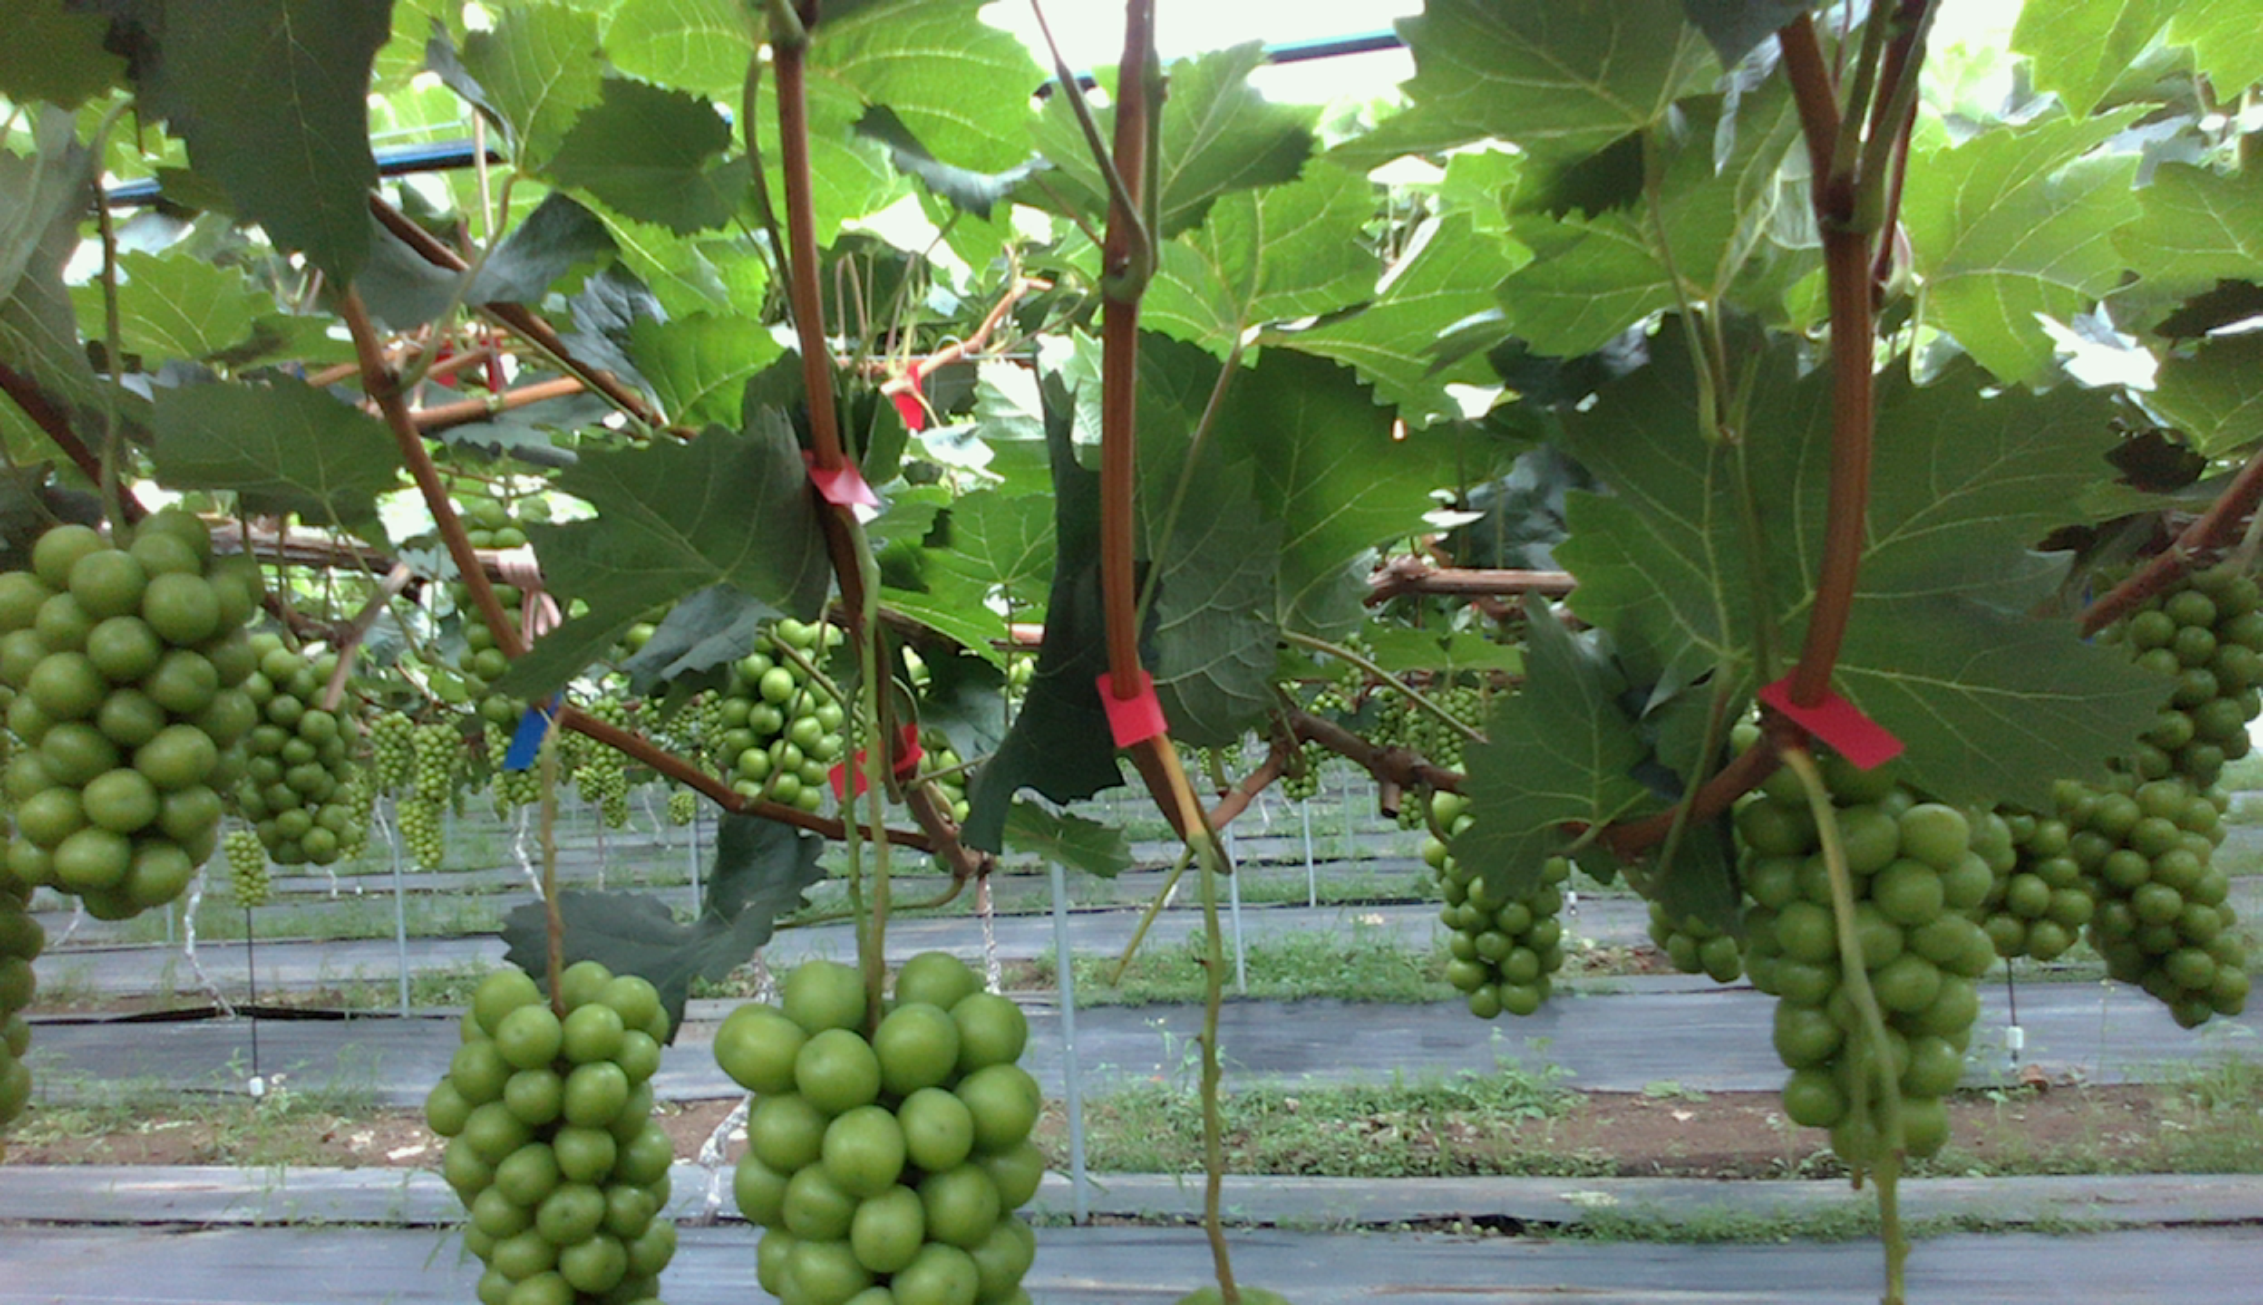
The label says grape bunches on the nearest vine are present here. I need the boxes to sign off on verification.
[2125,567,2261,785]
[424,962,676,1303]
[716,952,1043,1303]
[2073,772,2248,1028]
[1739,763,1996,1164]
[0,504,263,921]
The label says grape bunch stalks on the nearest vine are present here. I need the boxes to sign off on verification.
[1779,749,1915,1303]
[1150,734,1240,1303]
[540,720,564,1017]
[825,500,889,1029]
[87,94,140,544]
